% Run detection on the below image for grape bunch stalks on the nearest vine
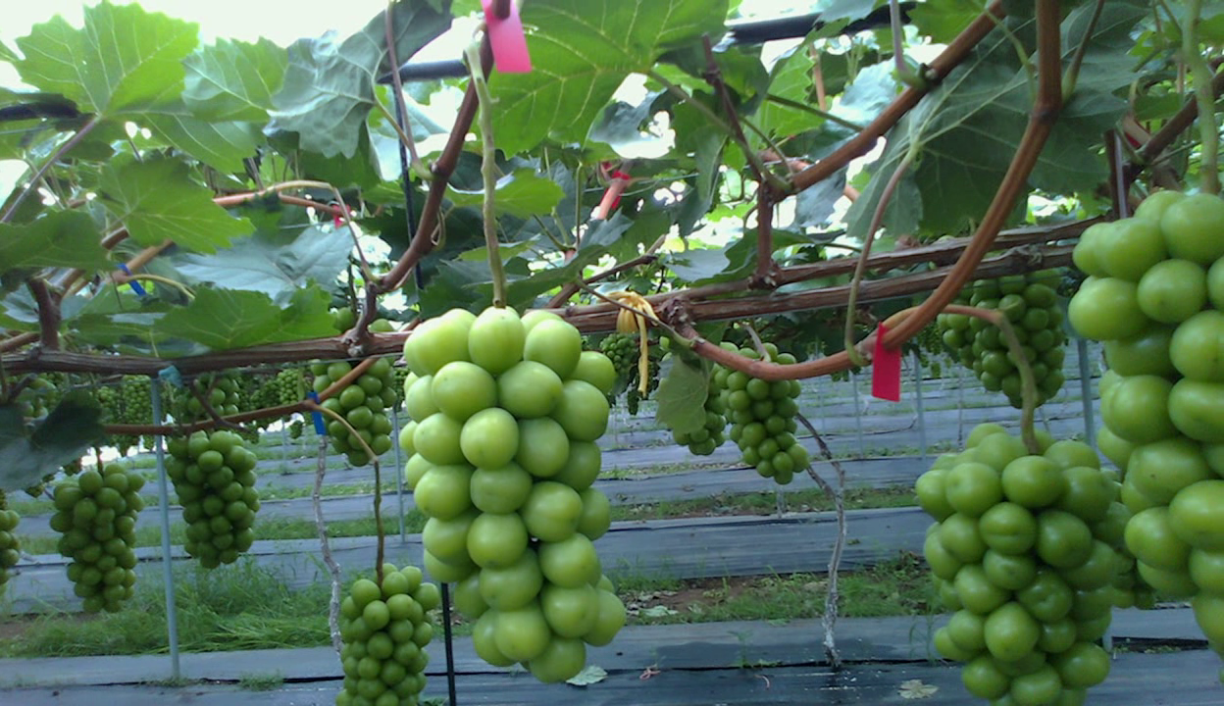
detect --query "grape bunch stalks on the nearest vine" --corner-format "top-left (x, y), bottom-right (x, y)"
top-left (883, 303), bottom-right (1040, 451)
top-left (462, 36), bottom-right (505, 306)
top-left (1181, 1), bottom-right (1221, 192)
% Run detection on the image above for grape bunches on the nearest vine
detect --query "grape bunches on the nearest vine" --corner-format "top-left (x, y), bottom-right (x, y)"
top-left (913, 423), bottom-right (1130, 704)
top-left (1068, 190), bottom-right (1223, 641)
top-left (397, 306), bottom-right (625, 683)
